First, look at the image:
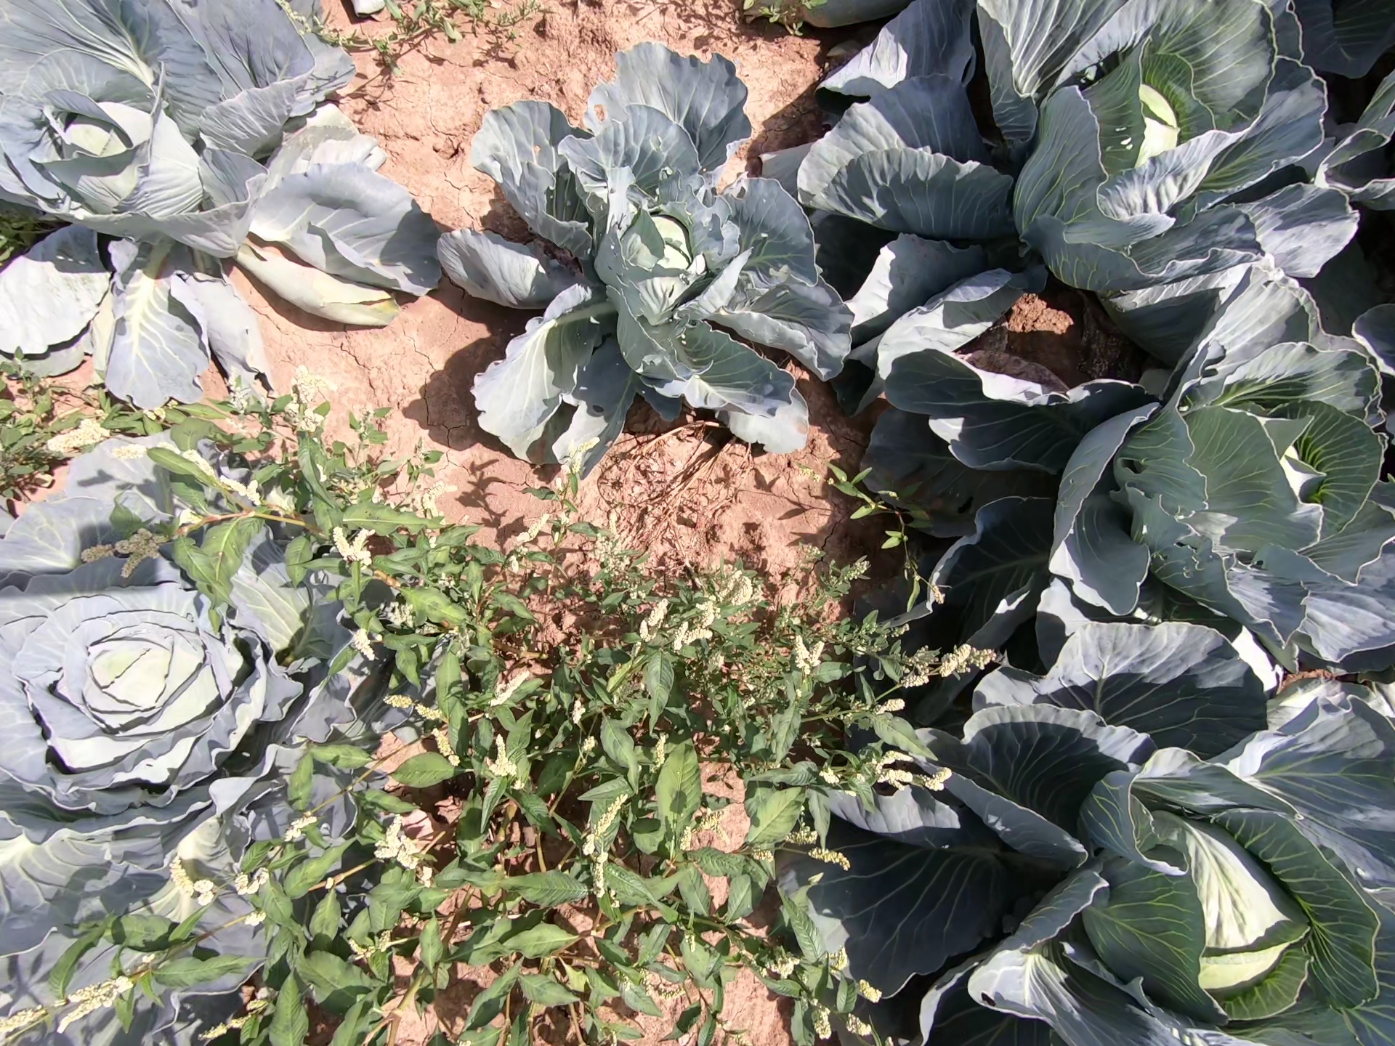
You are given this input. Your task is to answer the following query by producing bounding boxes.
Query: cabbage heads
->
[49,626,244,782]
[1064,81,1185,204]
[1095,837,1303,1018]
[60,103,201,225]
[621,215,702,293]
[1175,413,1308,554]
